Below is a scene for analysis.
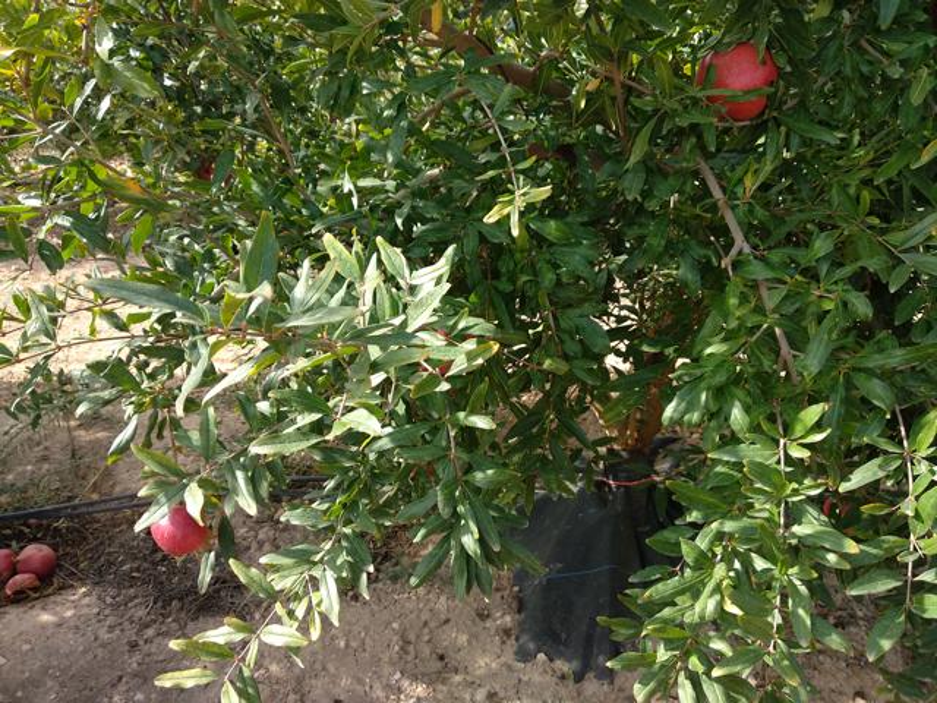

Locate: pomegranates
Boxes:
[149,504,211,557]
[695,42,779,120]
